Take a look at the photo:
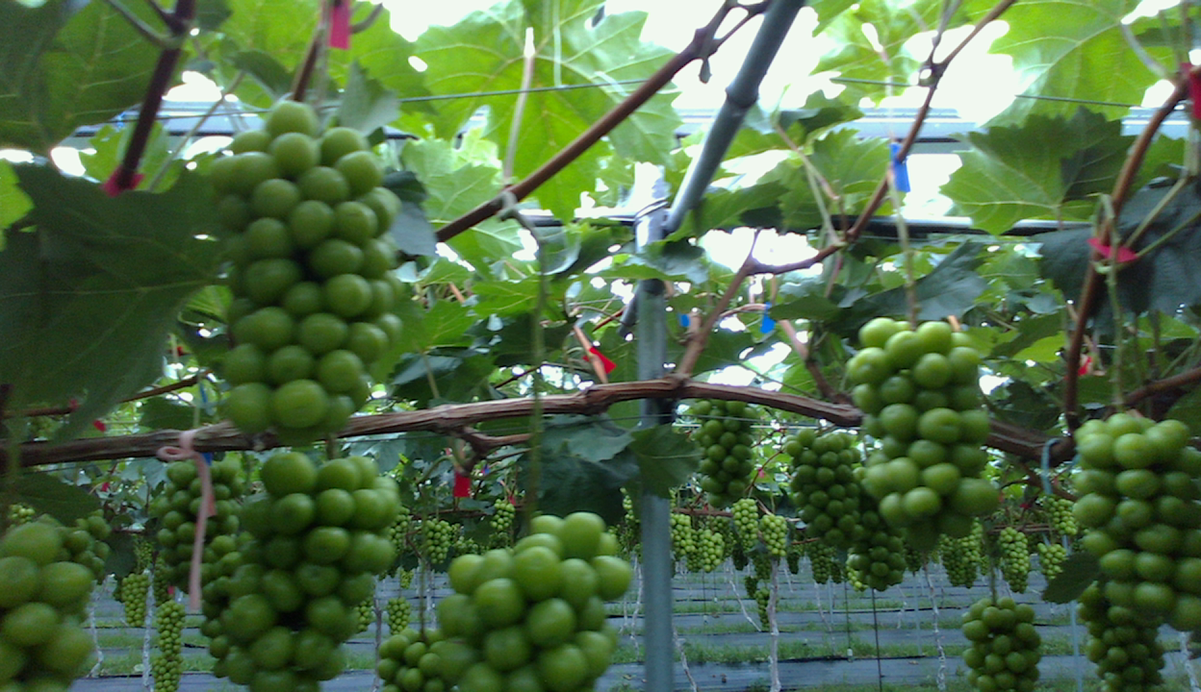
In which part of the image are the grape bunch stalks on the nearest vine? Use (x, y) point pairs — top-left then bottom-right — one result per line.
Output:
(1102, 193), (1125, 412)
(885, 170), (918, 329)
(515, 209), (549, 543)
(311, 1), (334, 136)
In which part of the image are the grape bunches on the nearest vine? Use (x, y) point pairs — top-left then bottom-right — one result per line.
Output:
(205, 100), (403, 448)
(1072, 412), (1200, 632)
(221, 451), (399, 691)
(0, 523), (101, 690)
(434, 512), (631, 691)
(844, 316), (1000, 554)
